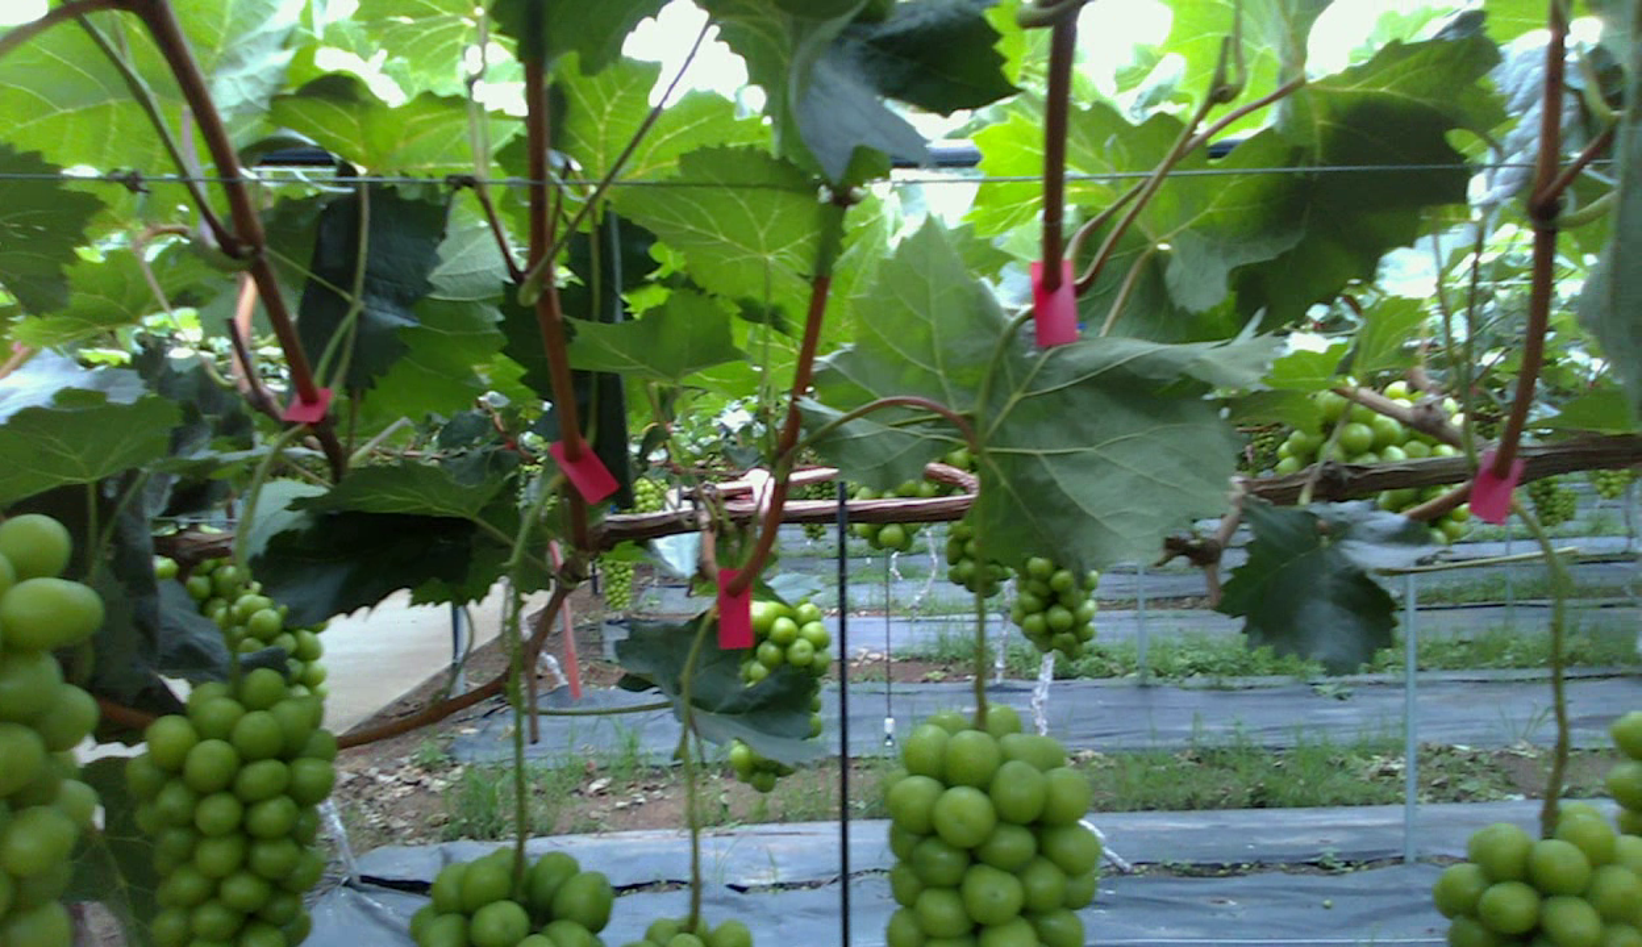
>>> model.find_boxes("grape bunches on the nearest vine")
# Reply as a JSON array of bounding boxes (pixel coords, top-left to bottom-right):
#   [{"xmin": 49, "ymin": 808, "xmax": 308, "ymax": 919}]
[
  {"xmin": 884, "ymin": 705, "xmax": 1097, "ymax": 946},
  {"xmin": 1435, "ymin": 805, "xmax": 1641, "ymax": 946},
  {"xmin": 625, "ymin": 918, "xmax": 750, "ymax": 946},
  {"xmin": 0, "ymin": 516, "xmax": 105, "ymax": 944},
  {"xmin": 128, "ymin": 667, "xmax": 338, "ymax": 946},
  {"xmin": 409, "ymin": 846, "xmax": 613, "ymax": 946}
]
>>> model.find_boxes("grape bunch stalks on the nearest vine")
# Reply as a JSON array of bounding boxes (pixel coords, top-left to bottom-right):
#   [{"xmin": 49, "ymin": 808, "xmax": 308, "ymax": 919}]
[
  {"xmin": 972, "ymin": 304, "xmax": 1035, "ymax": 731},
  {"xmin": 224, "ymin": 422, "xmax": 308, "ymax": 702},
  {"xmin": 679, "ymin": 604, "xmax": 718, "ymax": 933},
  {"xmin": 1513, "ymin": 497, "xmax": 1572, "ymax": 838},
  {"xmin": 504, "ymin": 473, "xmax": 566, "ymax": 902}
]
